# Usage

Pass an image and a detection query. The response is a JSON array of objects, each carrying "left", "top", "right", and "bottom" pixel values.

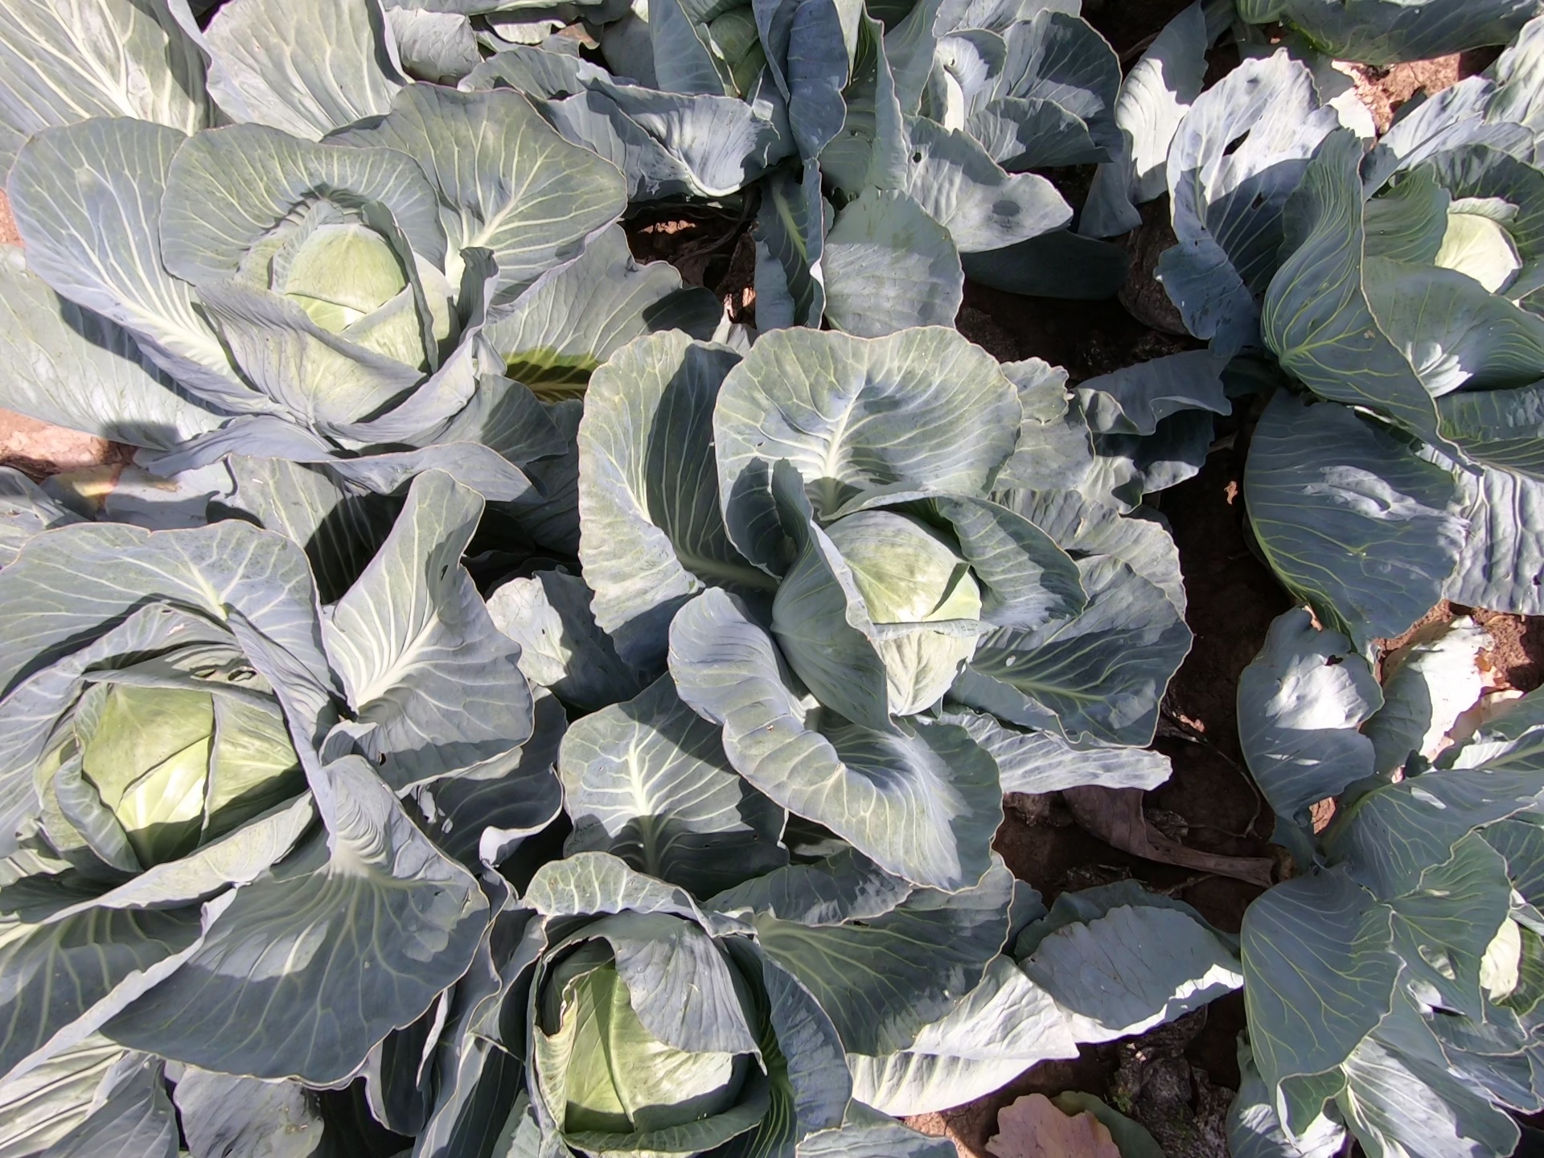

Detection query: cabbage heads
[
  {"left": 778, "top": 503, "right": 982, "bottom": 720},
  {"left": 1371, "top": 873, "right": 1526, "bottom": 1020},
  {"left": 545, "top": 923, "right": 757, "bottom": 1154},
  {"left": 35, "top": 653, "right": 323, "bottom": 887},
  {"left": 1308, "top": 202, "right": 1526, "bottom": 403},
  {"left": 224, "top": 224, "right": 463, "bottom": 442},
  {"left": 674, "top": 0, "right": 812, "bottom": 162}
]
